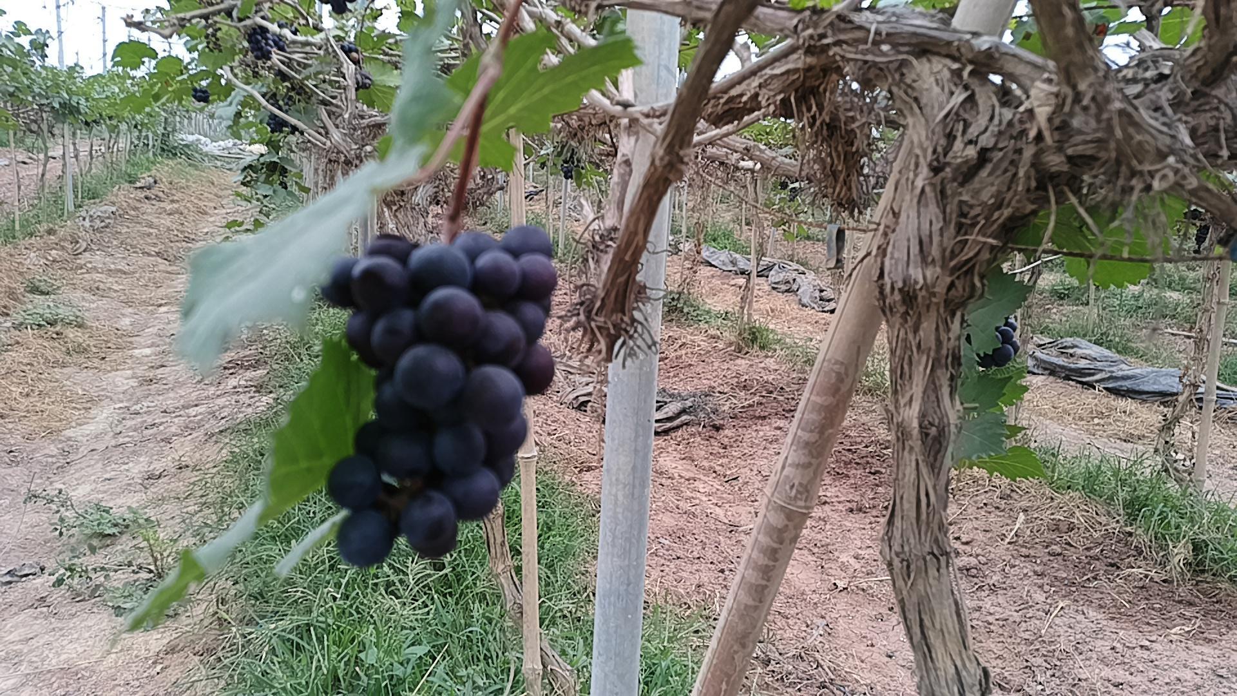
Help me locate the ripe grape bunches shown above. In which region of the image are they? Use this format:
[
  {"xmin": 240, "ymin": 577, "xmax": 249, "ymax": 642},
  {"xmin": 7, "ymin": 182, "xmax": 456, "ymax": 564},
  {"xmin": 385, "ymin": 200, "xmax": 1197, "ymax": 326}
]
[
  {"xmin": 776, "ymin": 180, "xmax": 789, "ymax": 191},
  {"xmin": 323, "ymin": 226, "xmax": 557, "ymax": 566},
  {"xmin": 191, "ymin": 86, "xmax": 211, "ymax": 104},
  {"xmin": 787, "ymin": 183, "xmax": 802, "ymax": 202},
  {"xmin": 1184, "ymin": 207, "xmax": 1212, "ymax": 254},
  {"xmin": 338, "ymin": 42, "xmax": 373, "ymax": 90},
  {"xmin": 965, "ymin": 316, "xmax": 1019, "ymax": 369},
  {"xmin": 265, "ymin": 97, "xmax": 299, "ymax": 134},
  {"xmin": 559, "ymin": 154, "xmax": 584, "ymax": 180},
  {"xmin": 244, "ymin": 15, "xmax": 298, "ymax": 62}
]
